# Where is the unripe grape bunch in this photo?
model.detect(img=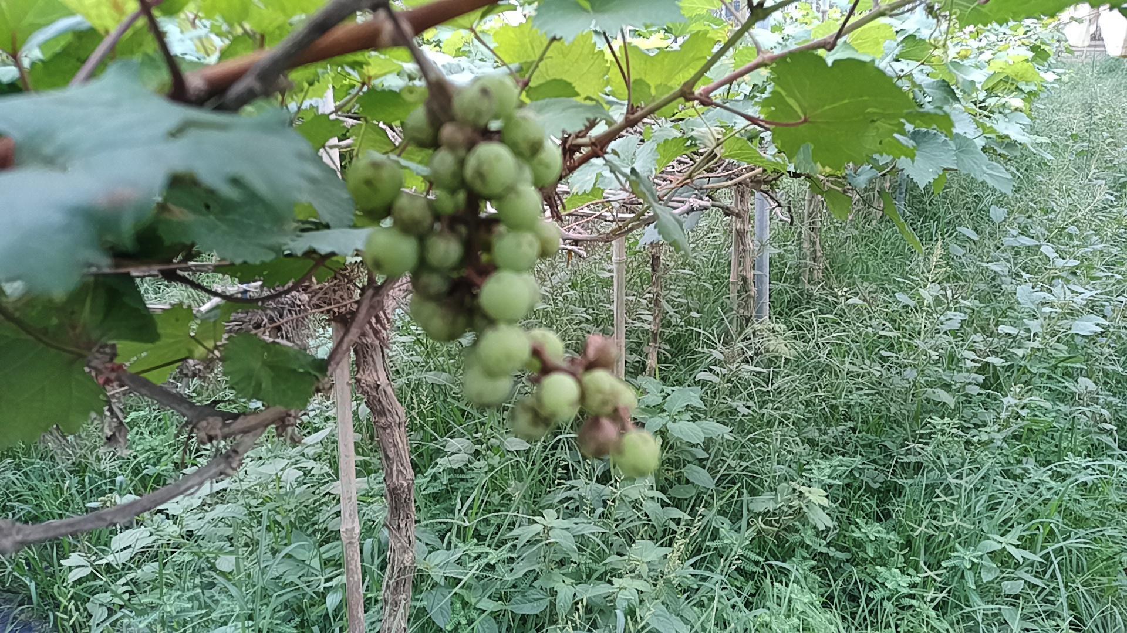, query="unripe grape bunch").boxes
[348,76,657,476]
